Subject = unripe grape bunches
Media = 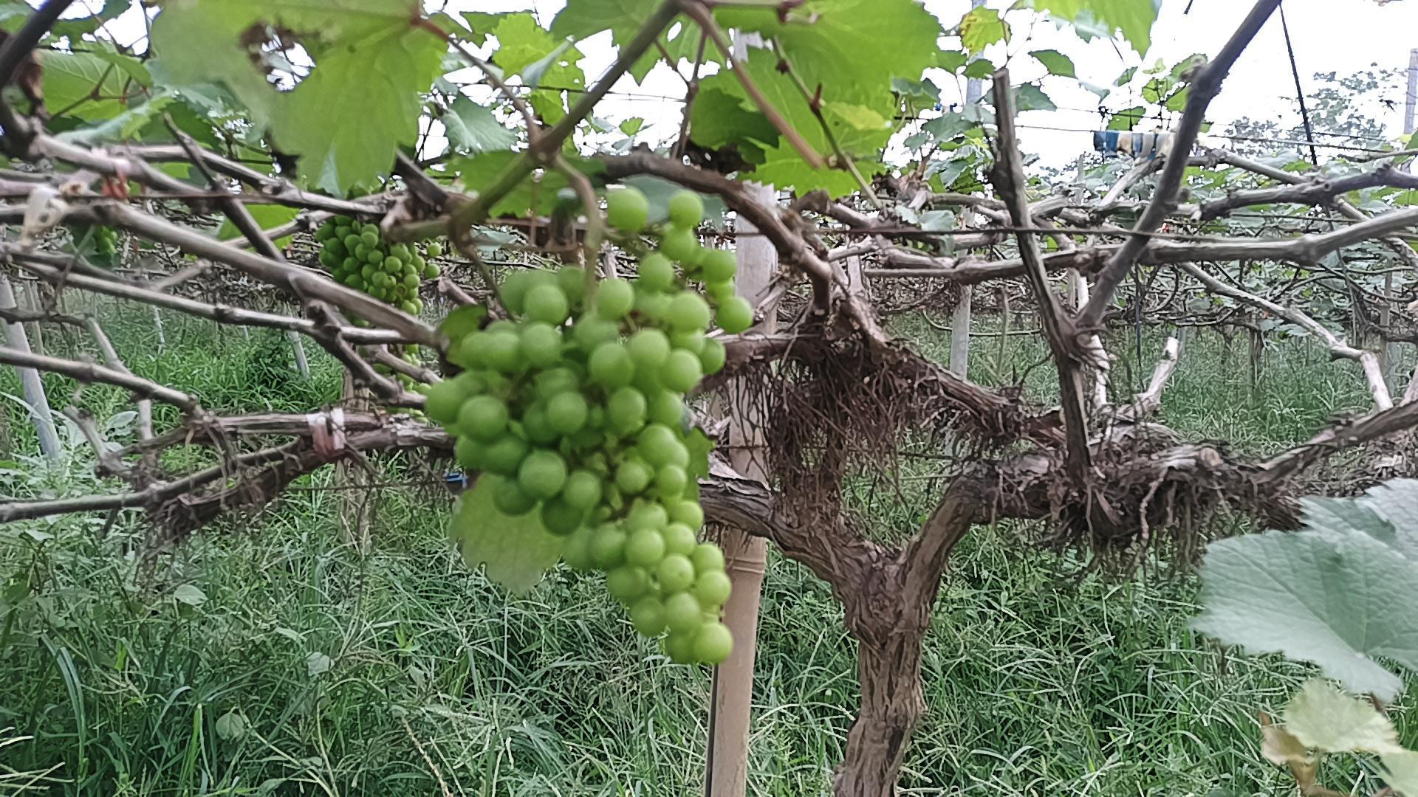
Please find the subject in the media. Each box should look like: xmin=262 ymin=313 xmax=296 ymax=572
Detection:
xmin=433 ymin=186 xmax=751 ymax=665
xmin=65 ymin=226 xmax=118 ymax=269
xmin=315 ymin=215 xmax=442 ymax=422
